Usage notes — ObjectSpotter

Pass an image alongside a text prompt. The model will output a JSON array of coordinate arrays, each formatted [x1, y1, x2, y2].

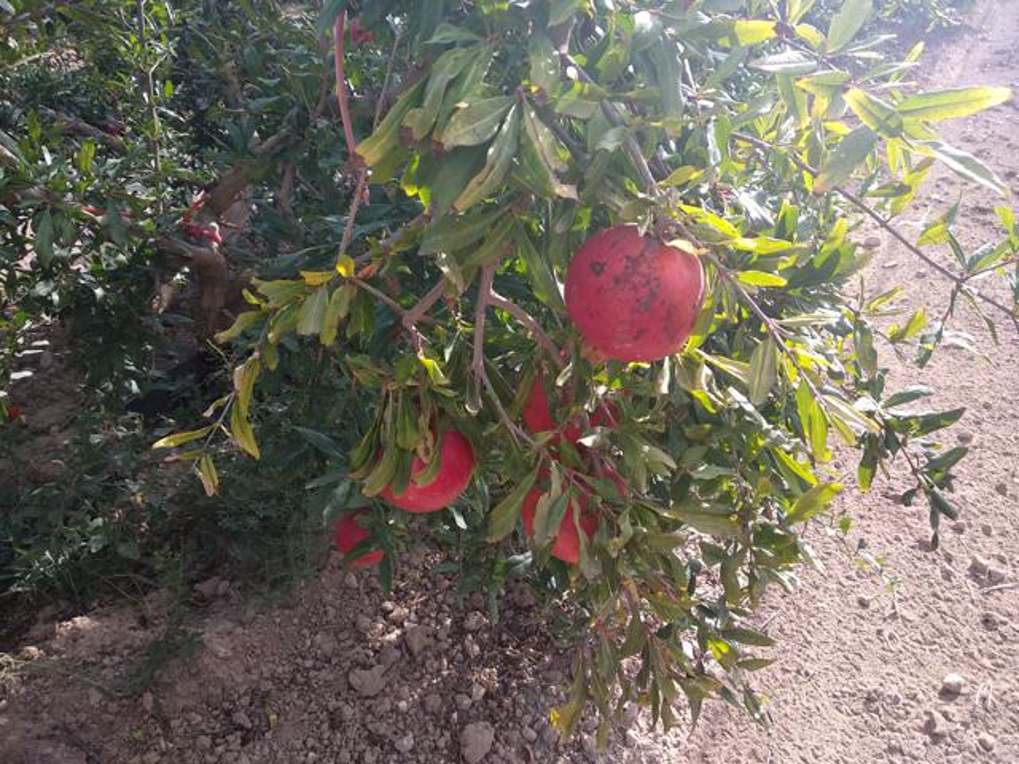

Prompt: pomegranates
[[522, 463, 629, 562], [519, 379, 618, 462], [334, 513, 385, 567], [564, 226, 705, 364], [381, 431, 473, 513]]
